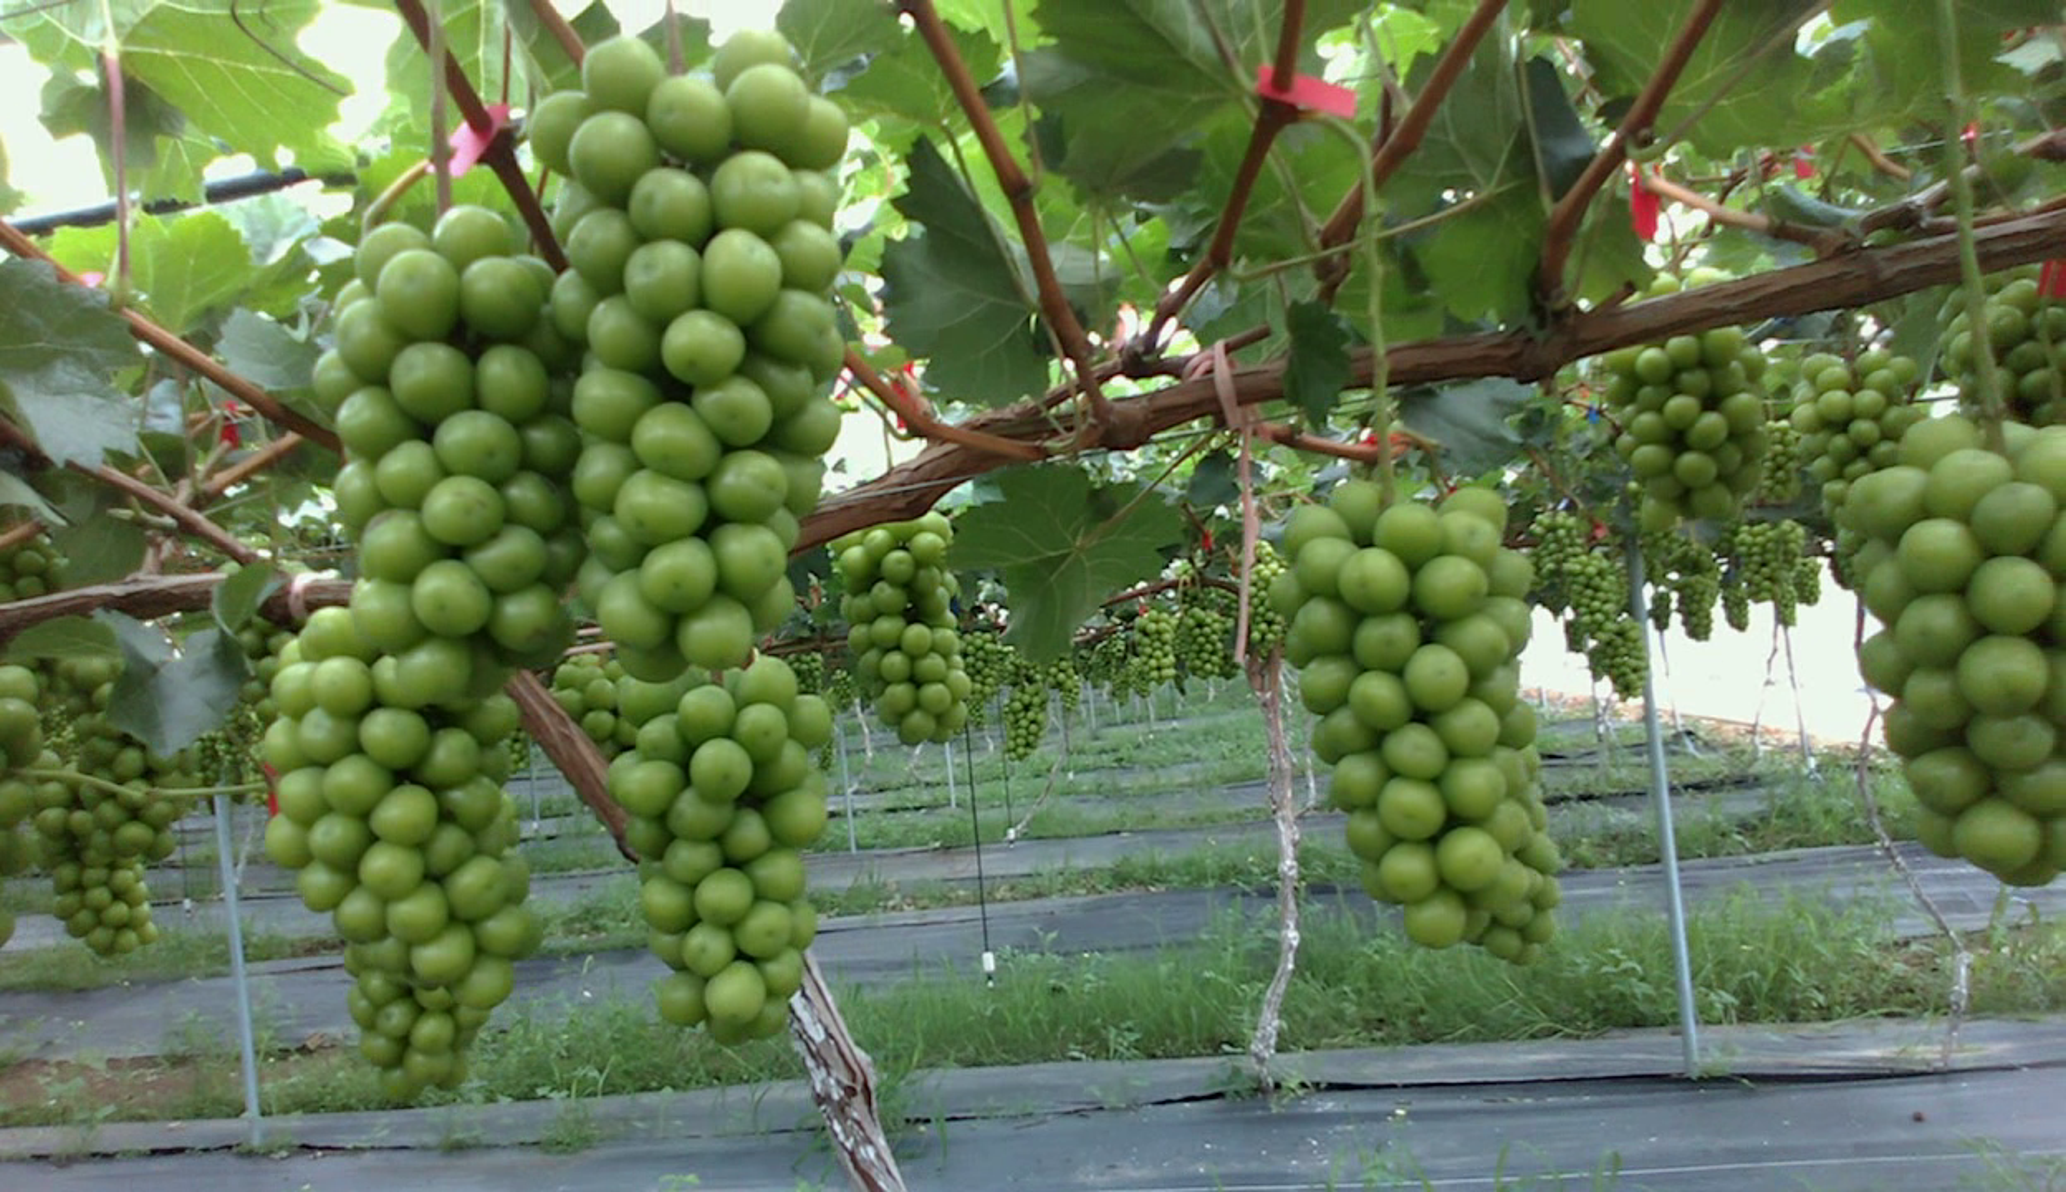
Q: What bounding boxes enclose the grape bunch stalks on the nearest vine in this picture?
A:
[1934,0,2003,449]
[667,5,685,74]
[710,669,723,687]
[429,0,450,209]
[1304,109,1399,507]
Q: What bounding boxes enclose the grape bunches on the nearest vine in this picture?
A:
[526,35,848,682]
[609,656,833,1048]
[1268,480,1538,952]
[315,204,581,709]
[1844,414,2064,884]
[265,606,545,1010]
